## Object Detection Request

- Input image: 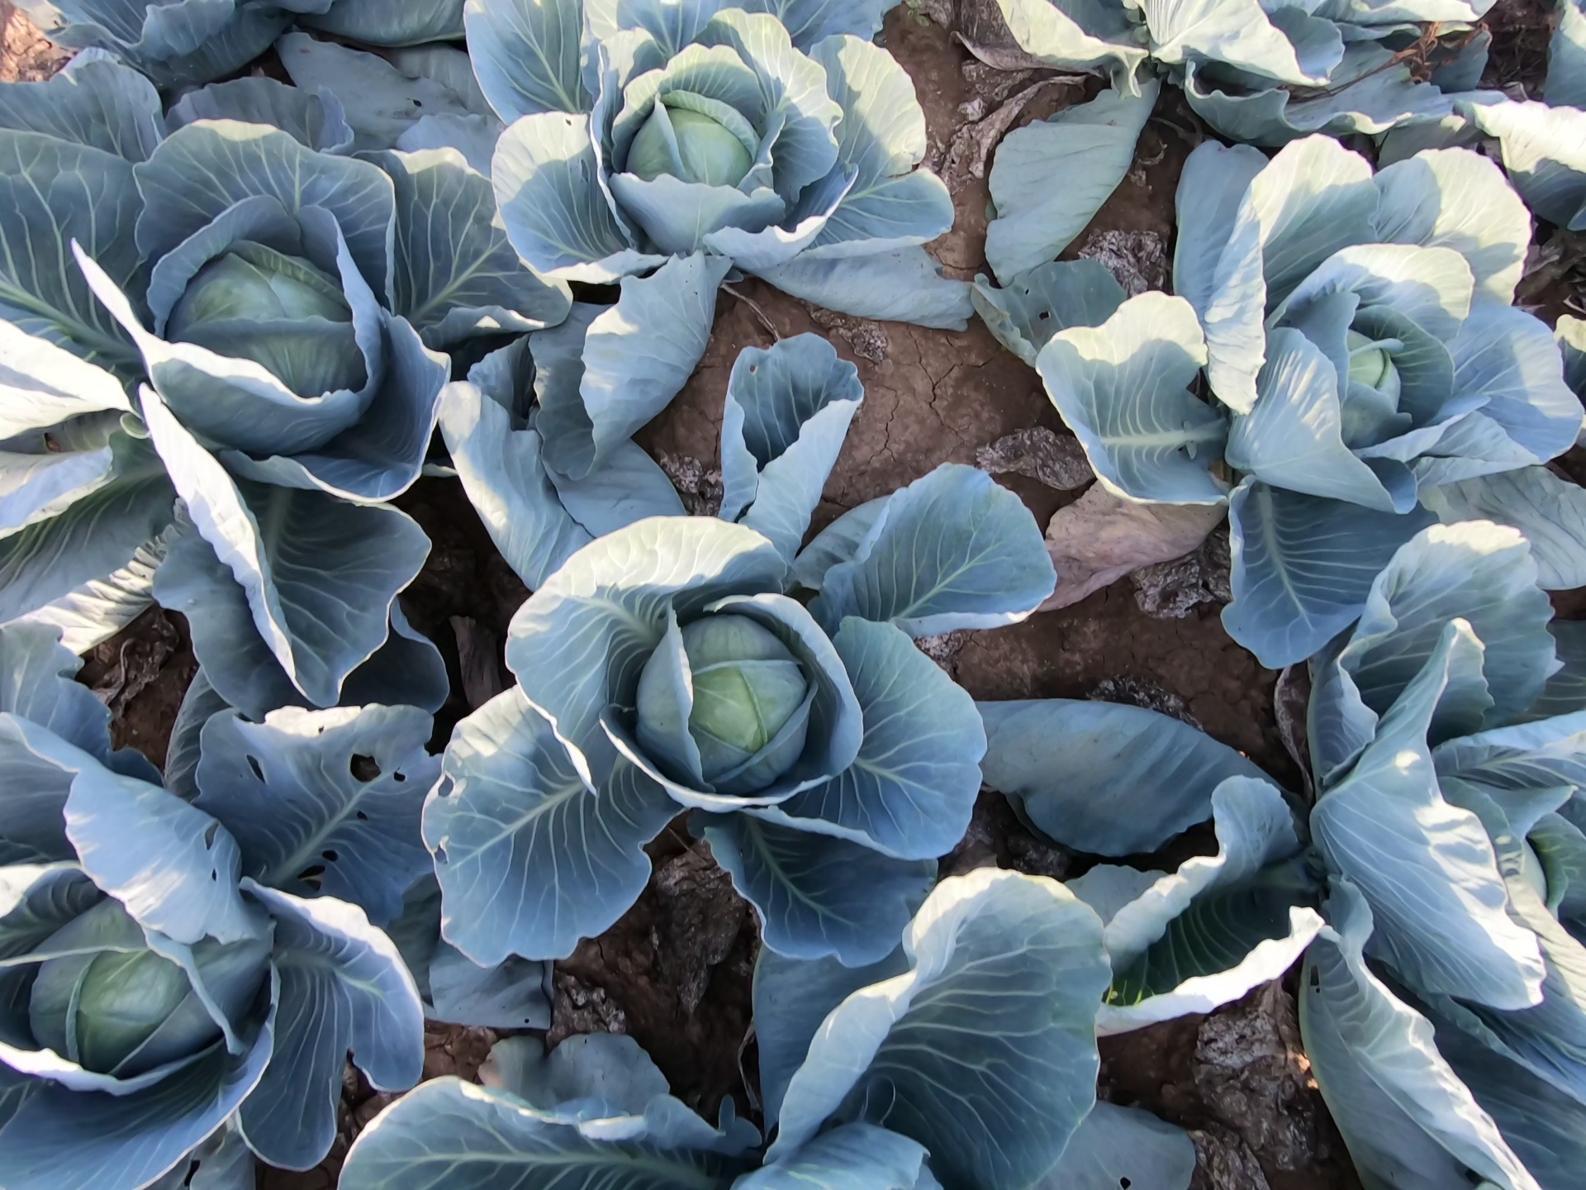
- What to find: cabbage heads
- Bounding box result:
[26,875,263,1080]
[167,245,360,419]
[648,616,805,792]
[617,102,760,240]
[1395,802,1551,954]
[1284,323,1402,458]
